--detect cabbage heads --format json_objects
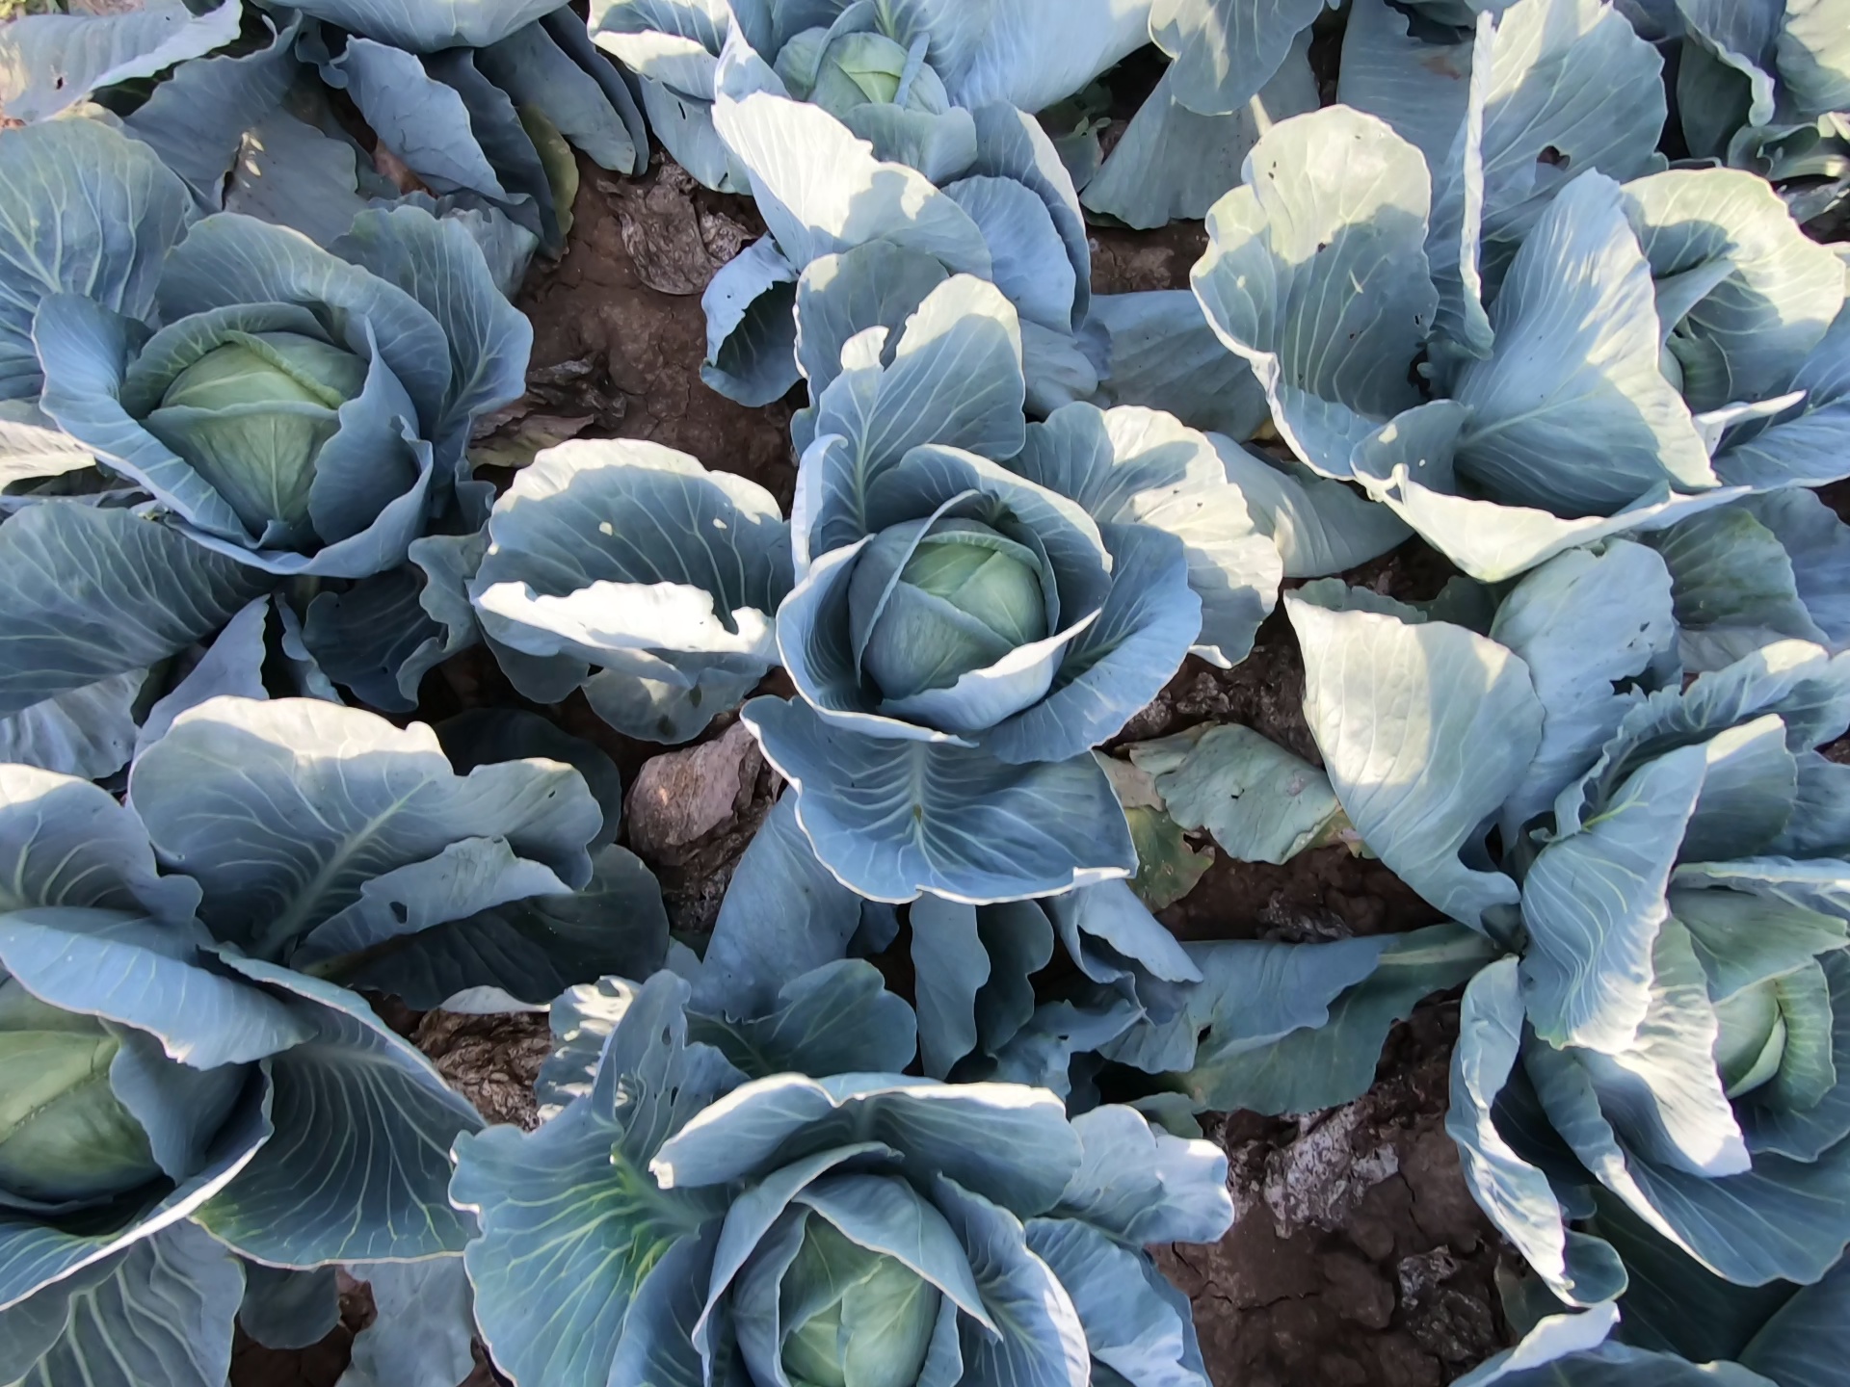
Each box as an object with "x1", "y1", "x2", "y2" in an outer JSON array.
[
  {"x1": 866, "y1": 518, "x2": 1049, "y2": 710},
  {"x1": 1617, "y1": 929, "x2": 1797, "y2": 1101},
  {"x1": 1516, "y1": 313, "x2": 1702, "y2": 487},
  {"x1": 809, "y1": 28, "x2": 955, "y2": 187},
  {"x1": 740, "y1": 1187, "x2": 967, "y2": 1385},
  {"x1": 3, "y1": 947, "x2": 235, "y2": 1208},
  {"x1": 151, "y1": 330, "x2": 404, "y2": 548}
]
